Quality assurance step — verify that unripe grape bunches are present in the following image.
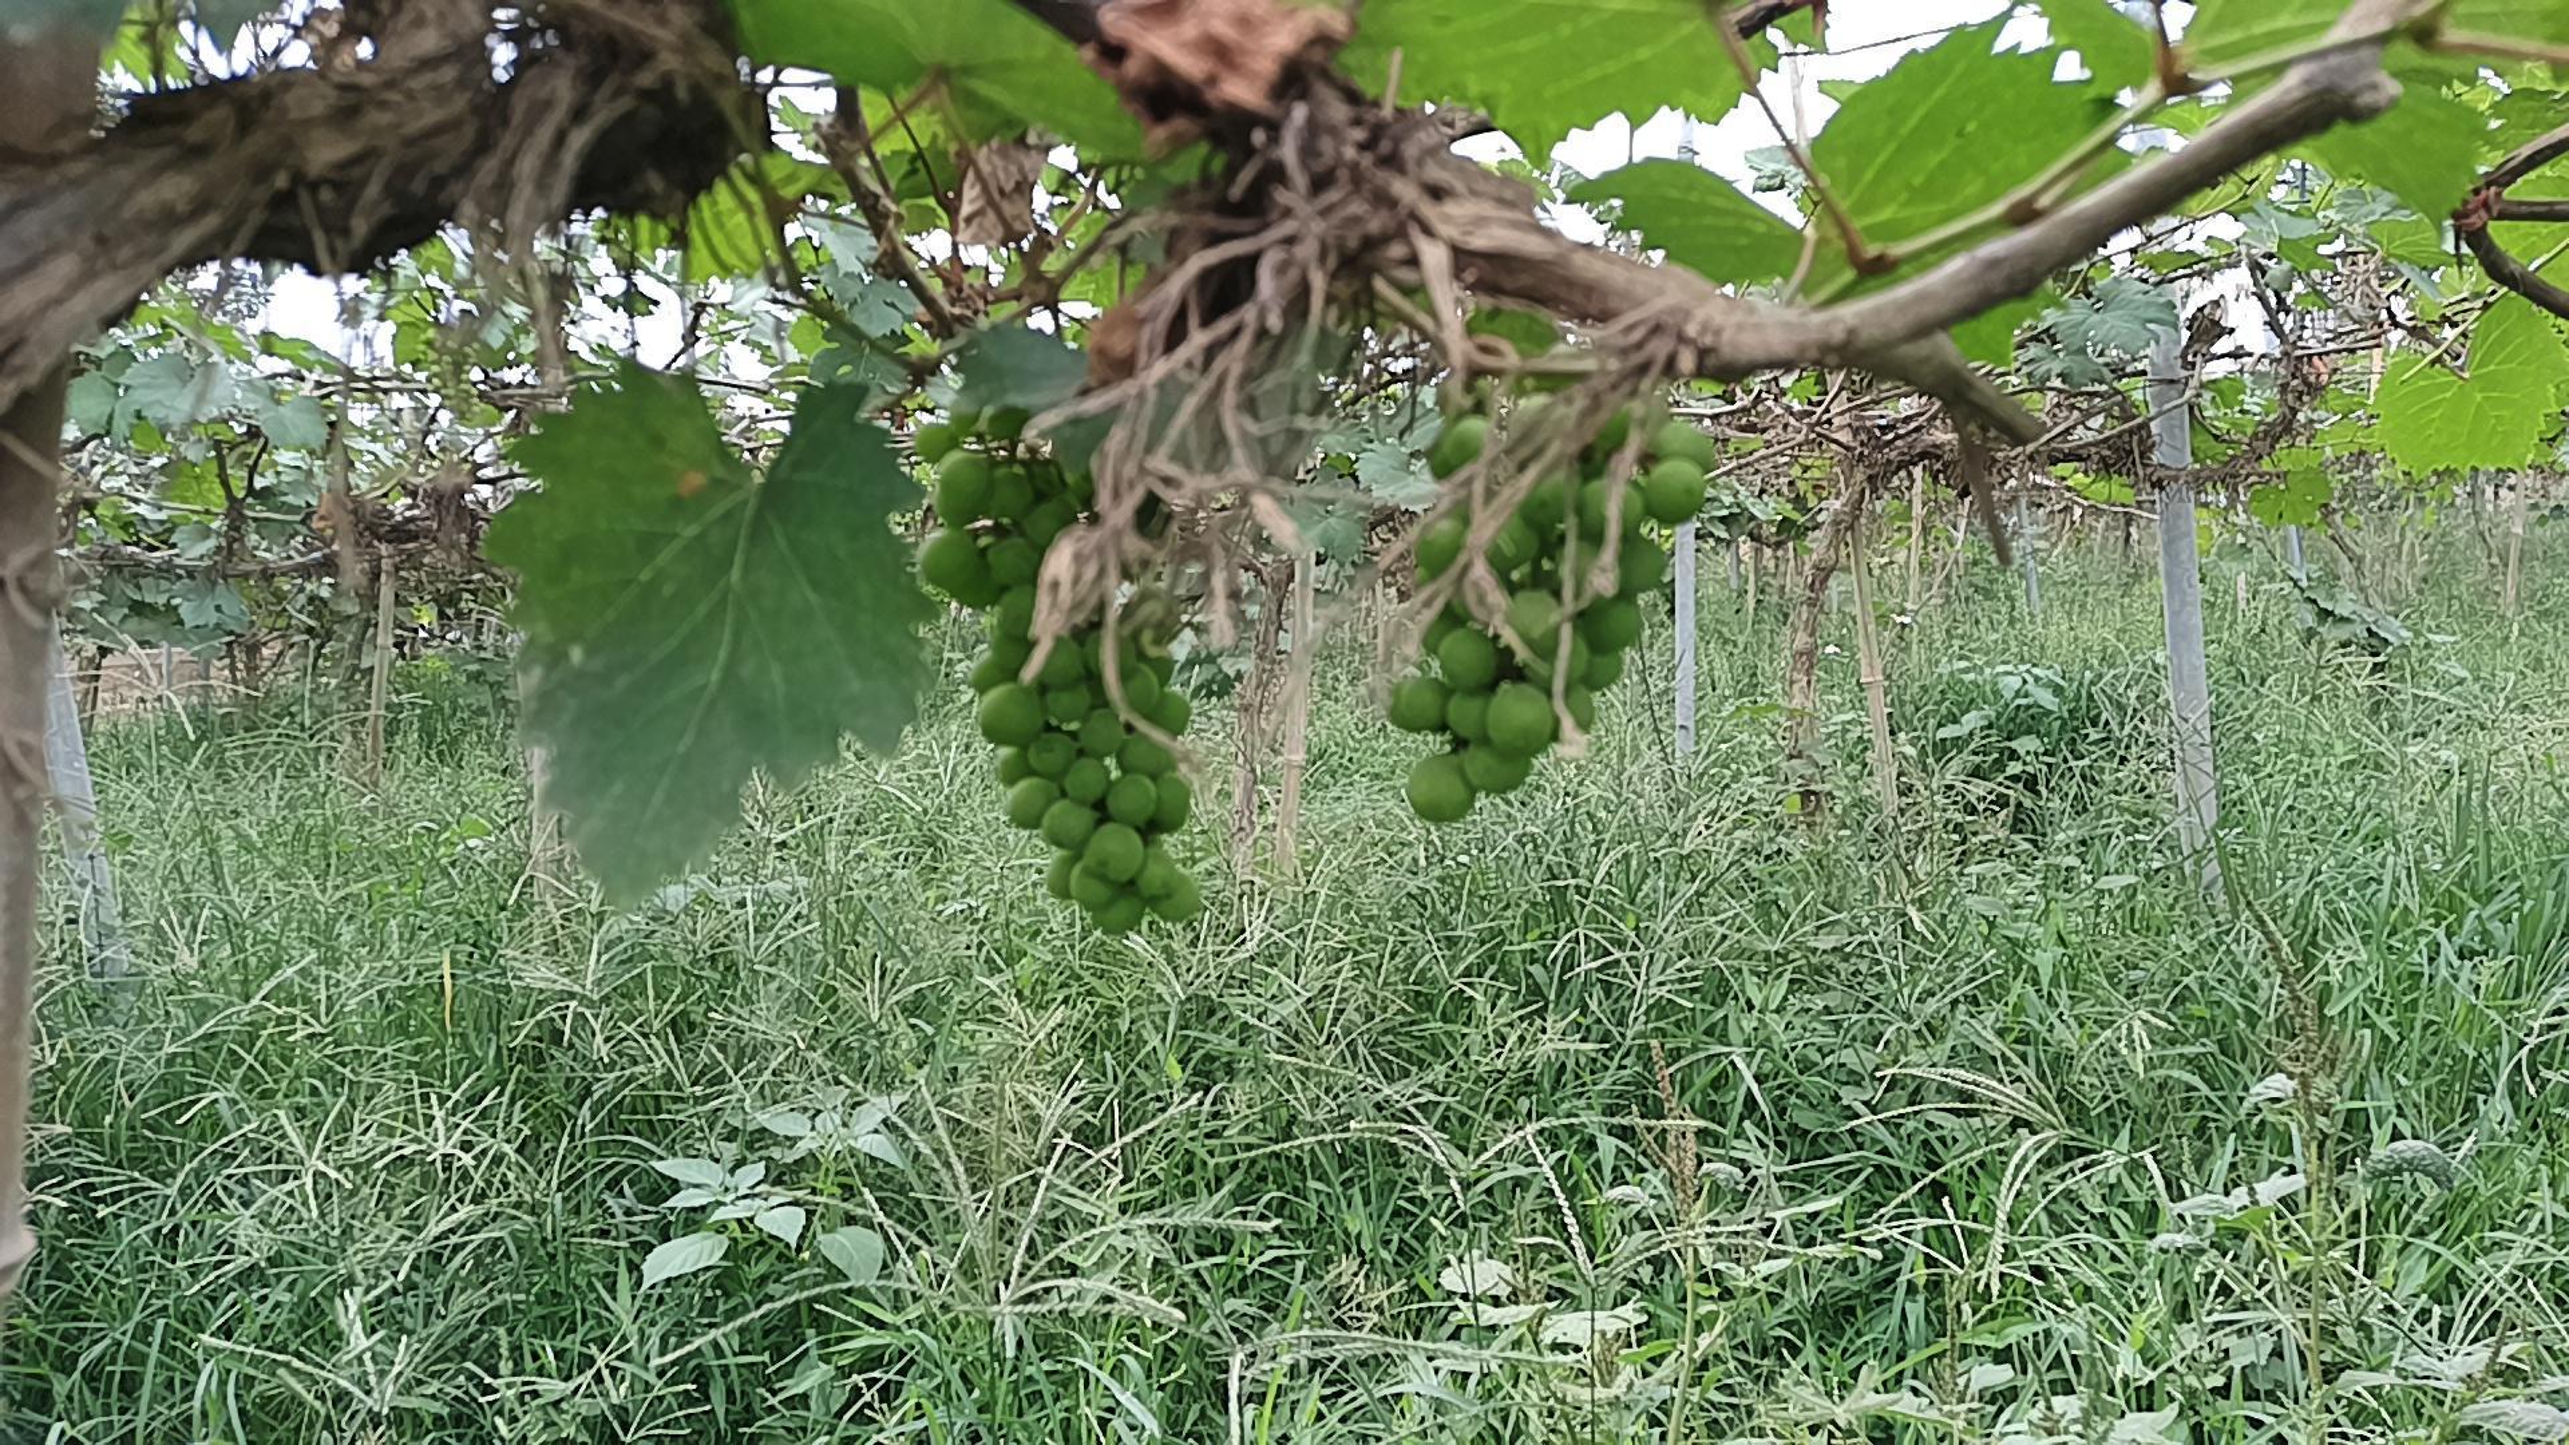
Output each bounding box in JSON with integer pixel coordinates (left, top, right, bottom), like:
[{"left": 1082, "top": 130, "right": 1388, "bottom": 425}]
[
  {"left": 1388, "top": 395, "right": 1714, "bottom": 822},
  {"left": 913, "top": 401, "right": 1199, "bottom": 935}
]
